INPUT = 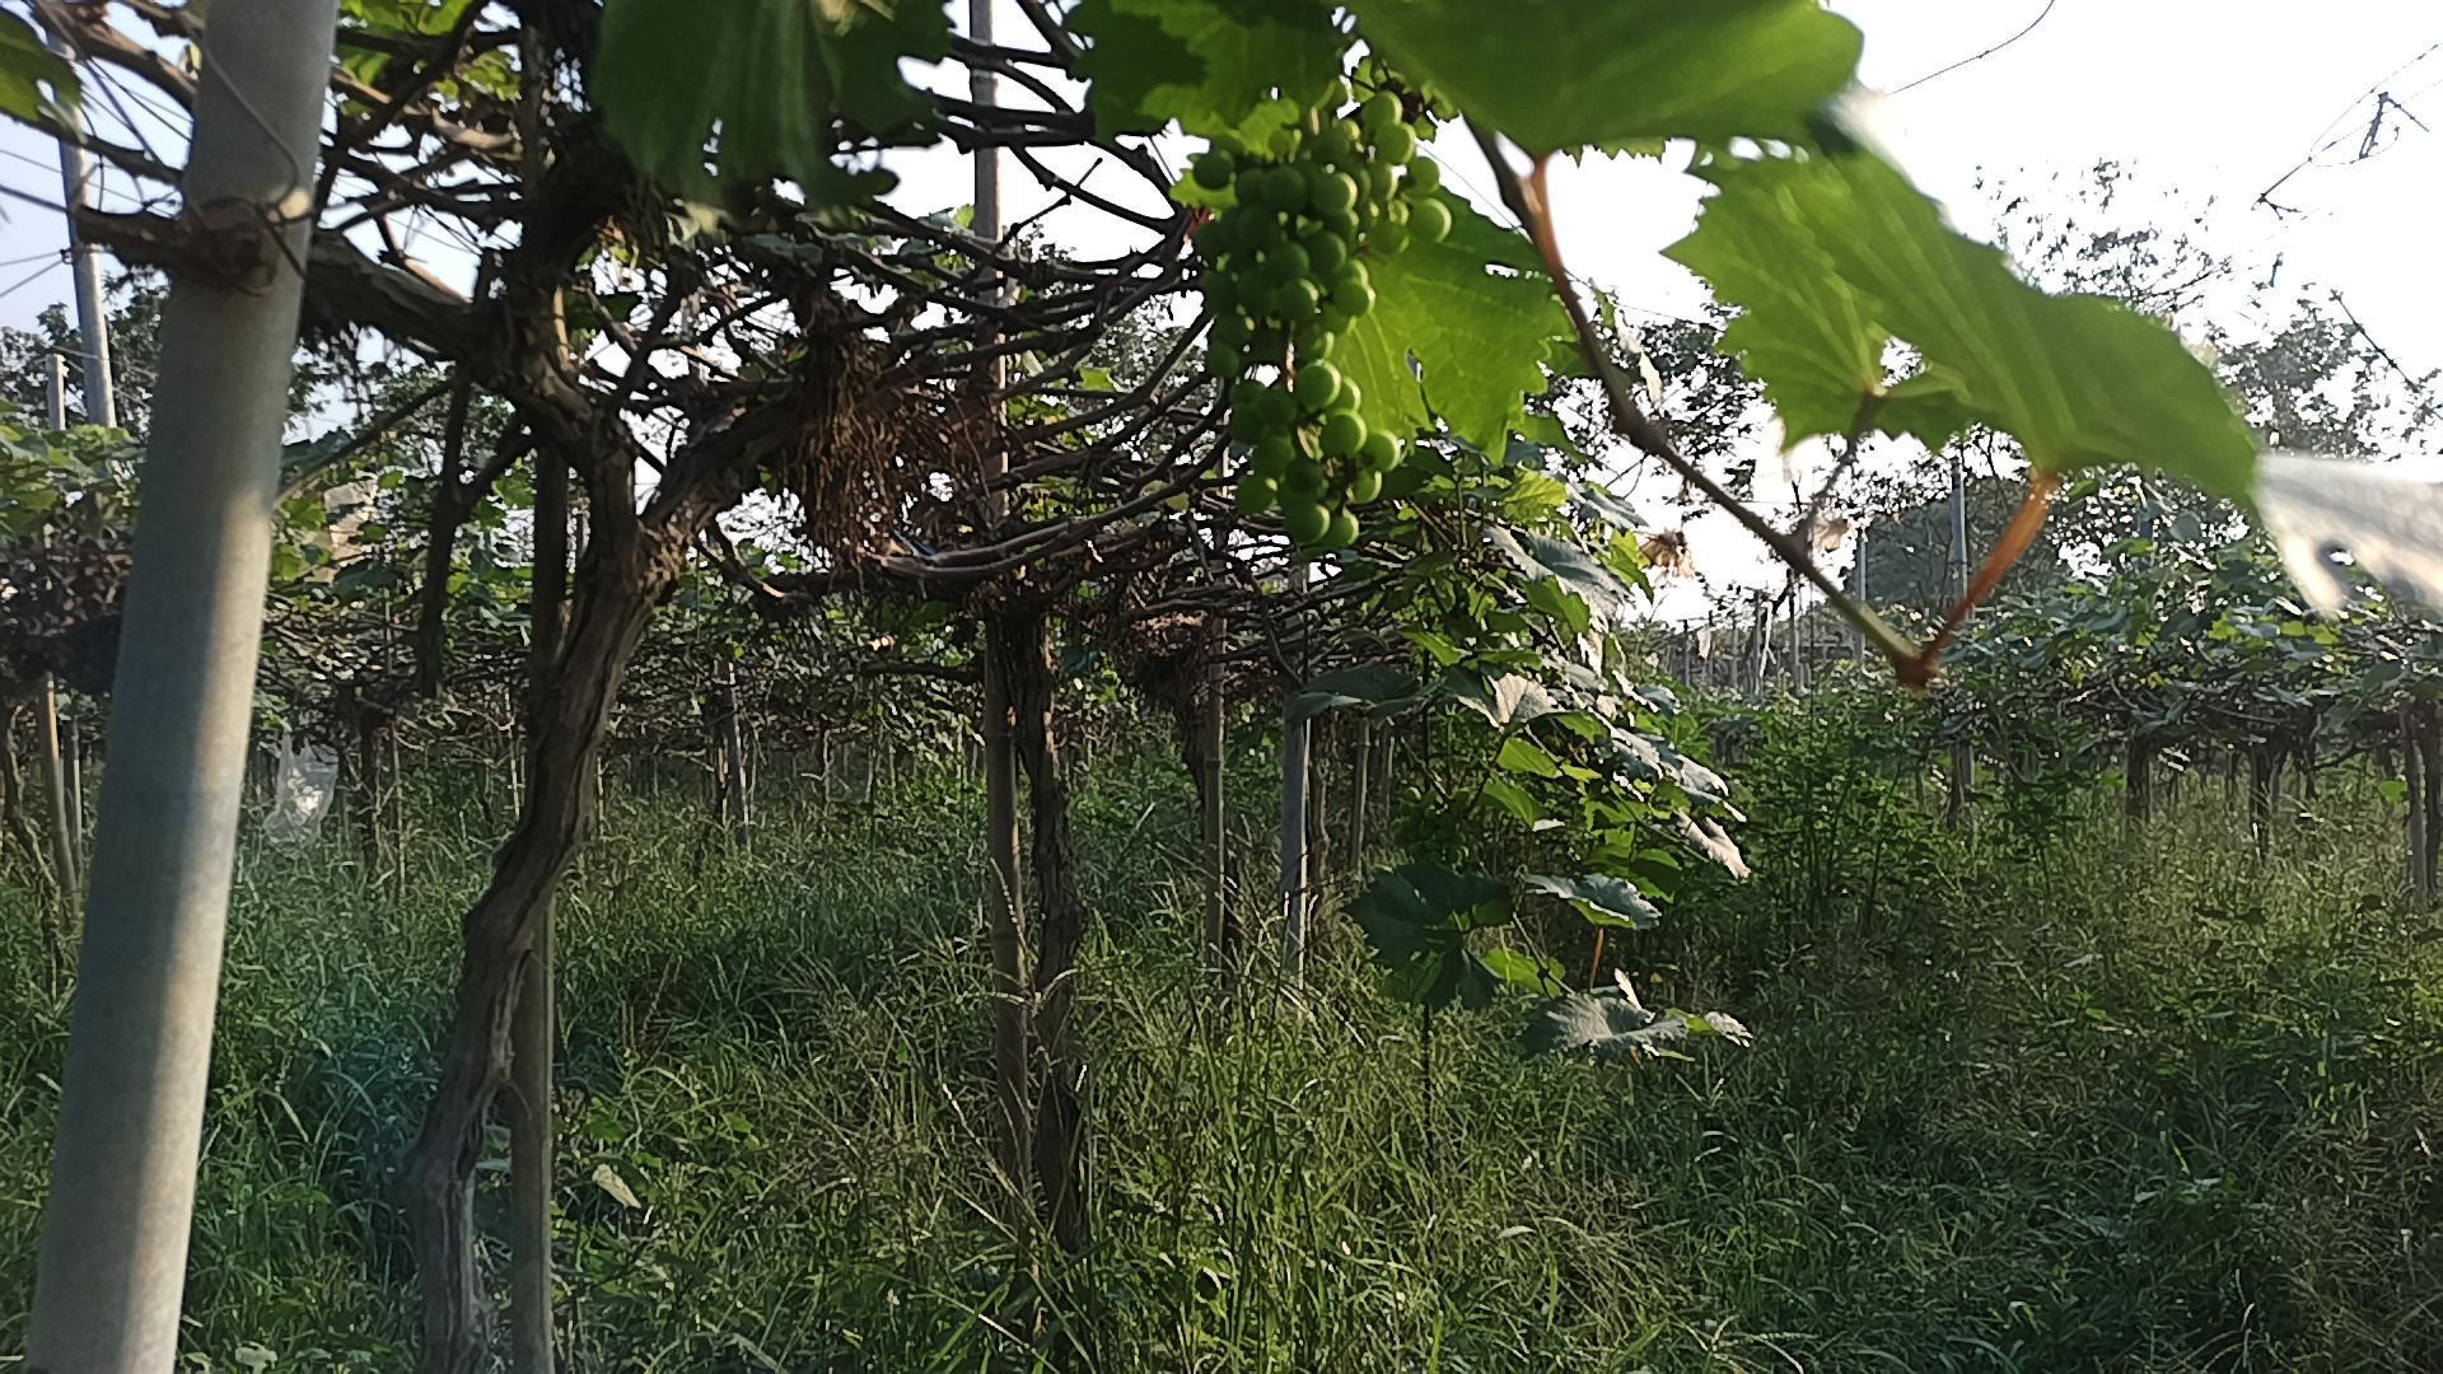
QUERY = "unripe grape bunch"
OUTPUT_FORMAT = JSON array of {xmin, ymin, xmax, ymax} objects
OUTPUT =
[{"xmin": 1173, "ymin": 89, "xmax": 1449, "ymax": 552}]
